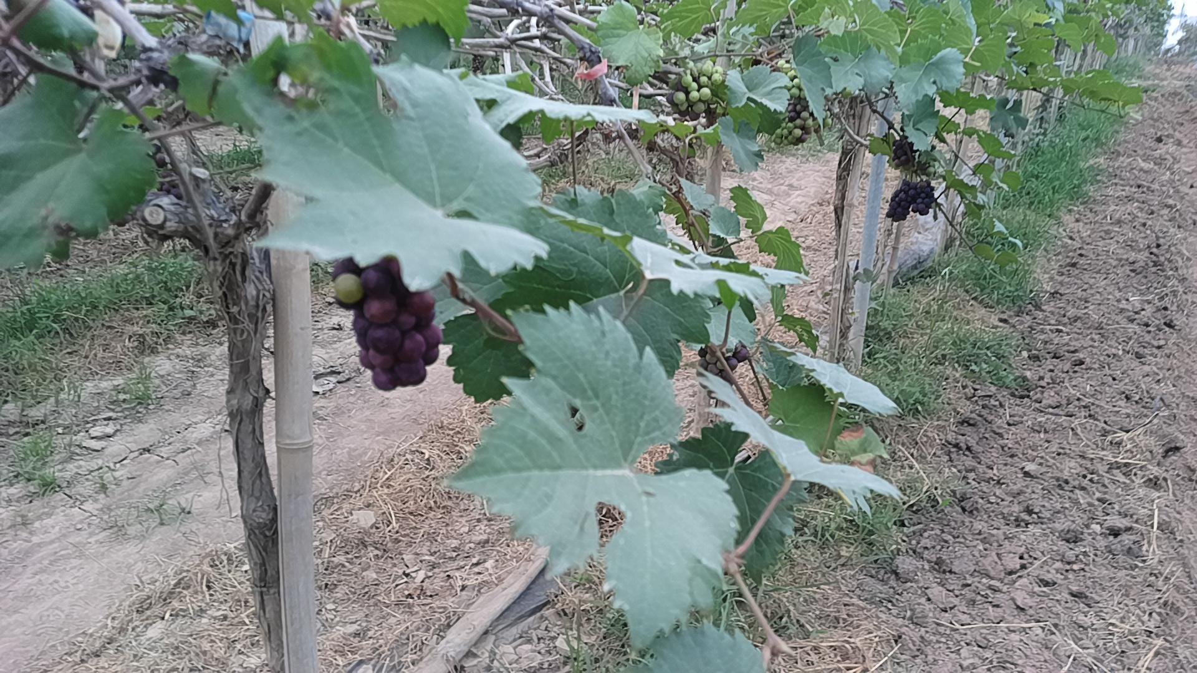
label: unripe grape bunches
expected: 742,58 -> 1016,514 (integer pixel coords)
666,61 -> 726,123
773,59 -> 838,145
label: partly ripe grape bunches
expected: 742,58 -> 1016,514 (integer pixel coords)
332,257 -> 442,391
891,135 -> 935,177
698,342 -> 750,381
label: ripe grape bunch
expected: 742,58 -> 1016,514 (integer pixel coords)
885,179 -> 937,222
